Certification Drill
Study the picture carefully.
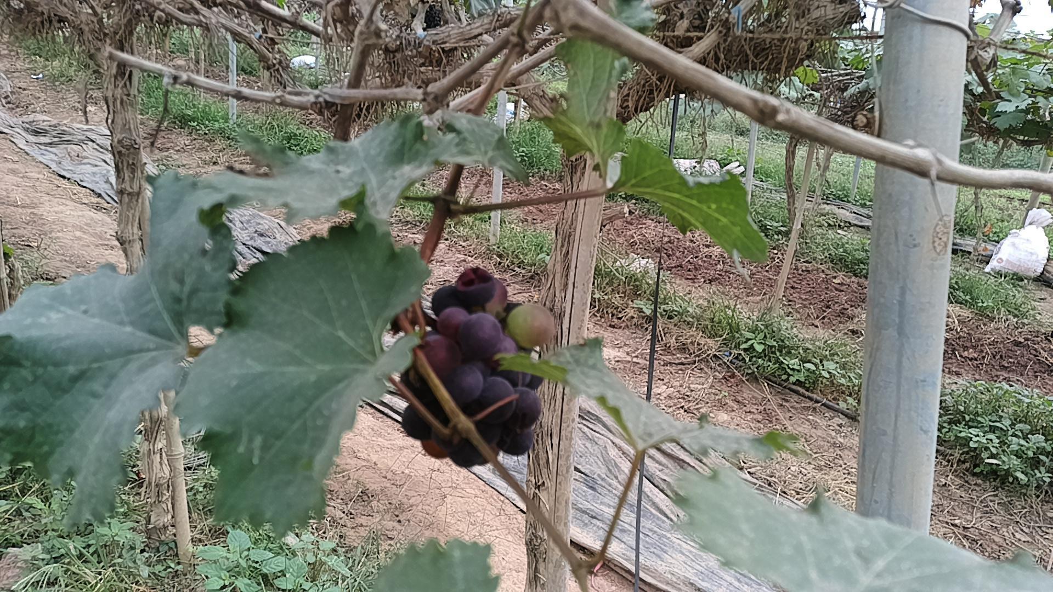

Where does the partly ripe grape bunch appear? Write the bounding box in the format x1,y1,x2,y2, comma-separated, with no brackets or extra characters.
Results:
401,263,558,470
